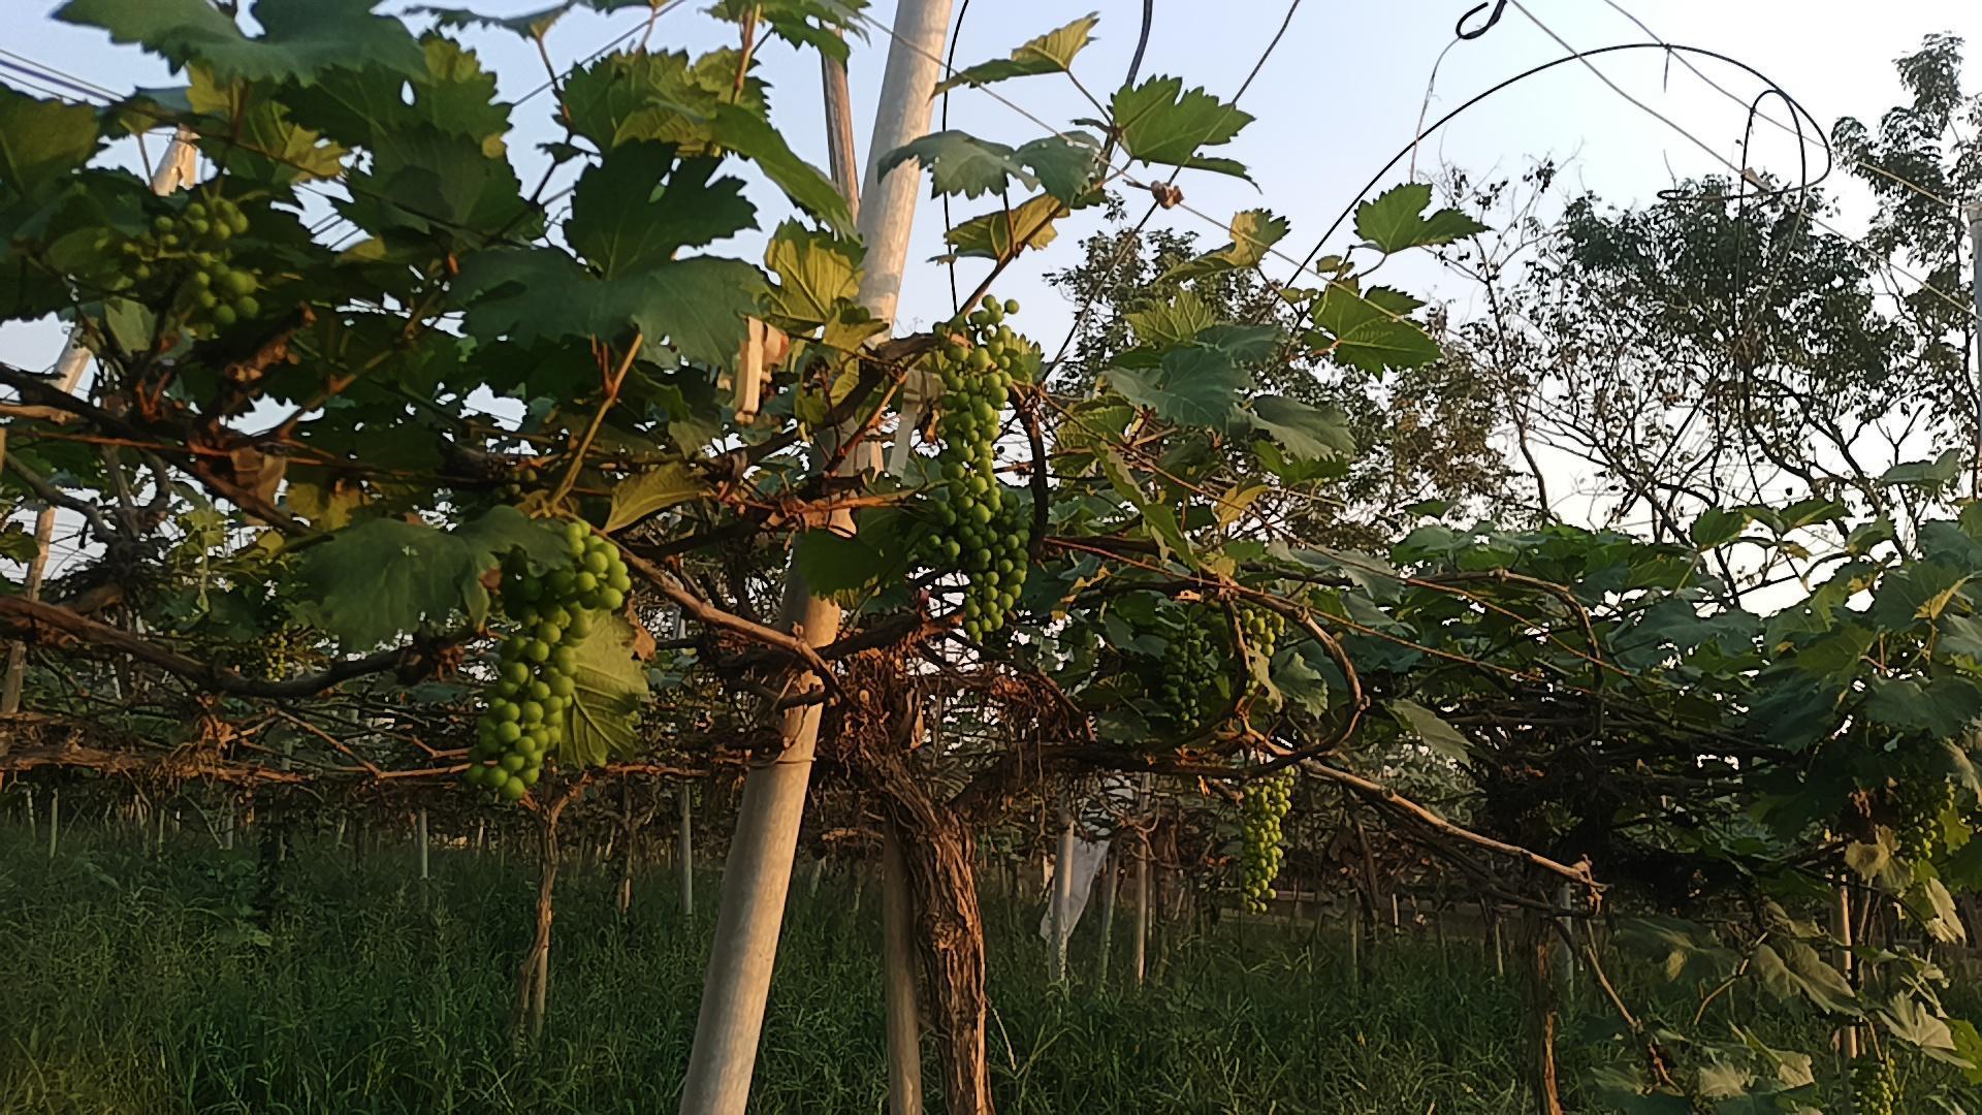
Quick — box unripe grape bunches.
[1896,753,1952,863]
[926,293,1020,521]
[916,484,1029,643]
[120,196,260,339]
[1239,766,1296,913]
[1240,608,1283,696]
[467,519,630,800]
[1160,601,1226,735]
